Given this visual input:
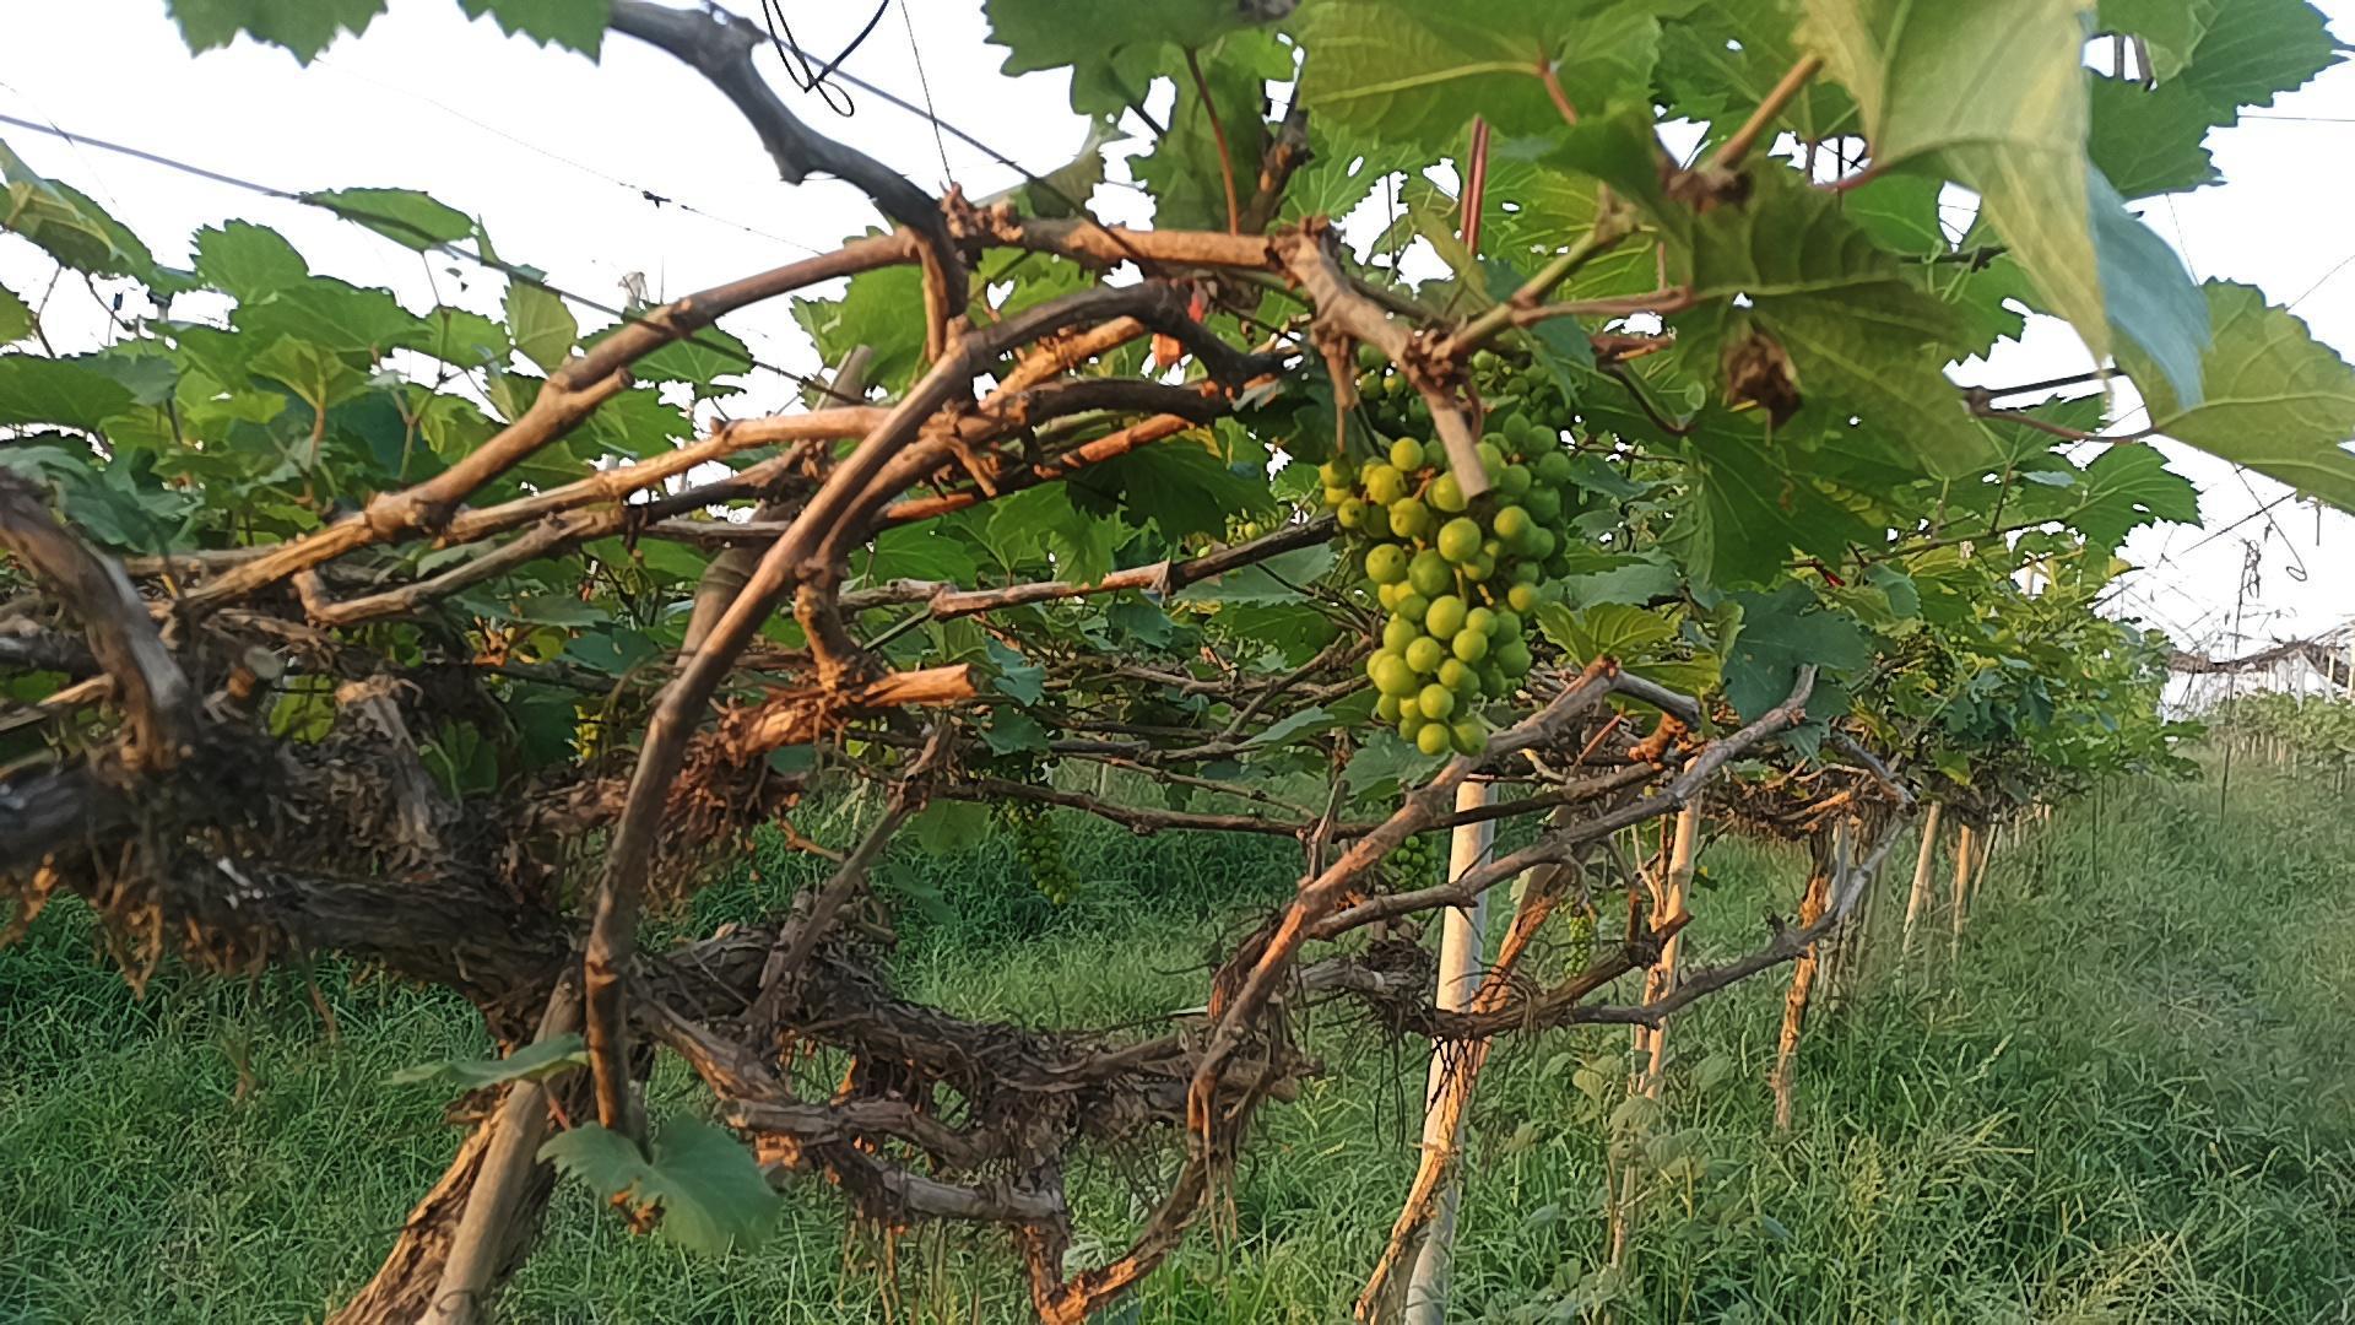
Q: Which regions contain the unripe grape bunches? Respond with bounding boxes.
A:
[1355,337,1571,439]
[979,751,1079,907]
[1371,833,1445,891]
[1565,892,1597,973]
[1322,413,1571,753]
